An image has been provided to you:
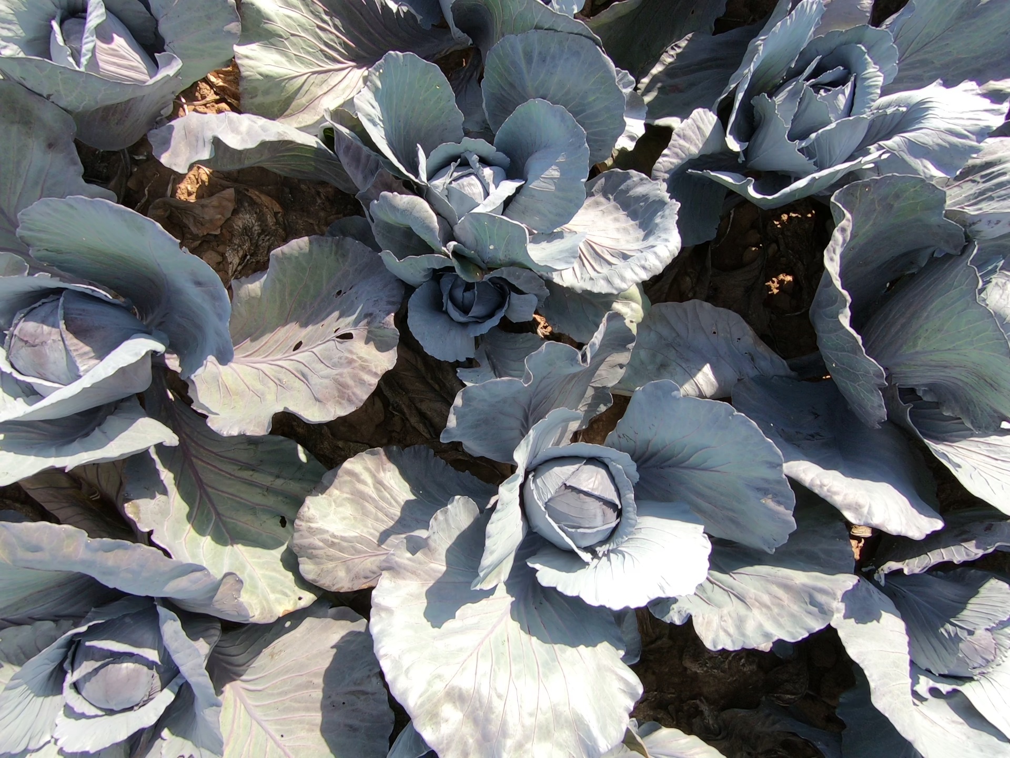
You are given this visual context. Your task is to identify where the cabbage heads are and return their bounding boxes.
[71,617,172,713]
[445,276,493,316]
[780,77,846,136]
[432,163,503,220]
[7,299,120,393]
[48,18,125,97]
[932,271,1009,370]
[521,451,623,549]
[902,595,999,678]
